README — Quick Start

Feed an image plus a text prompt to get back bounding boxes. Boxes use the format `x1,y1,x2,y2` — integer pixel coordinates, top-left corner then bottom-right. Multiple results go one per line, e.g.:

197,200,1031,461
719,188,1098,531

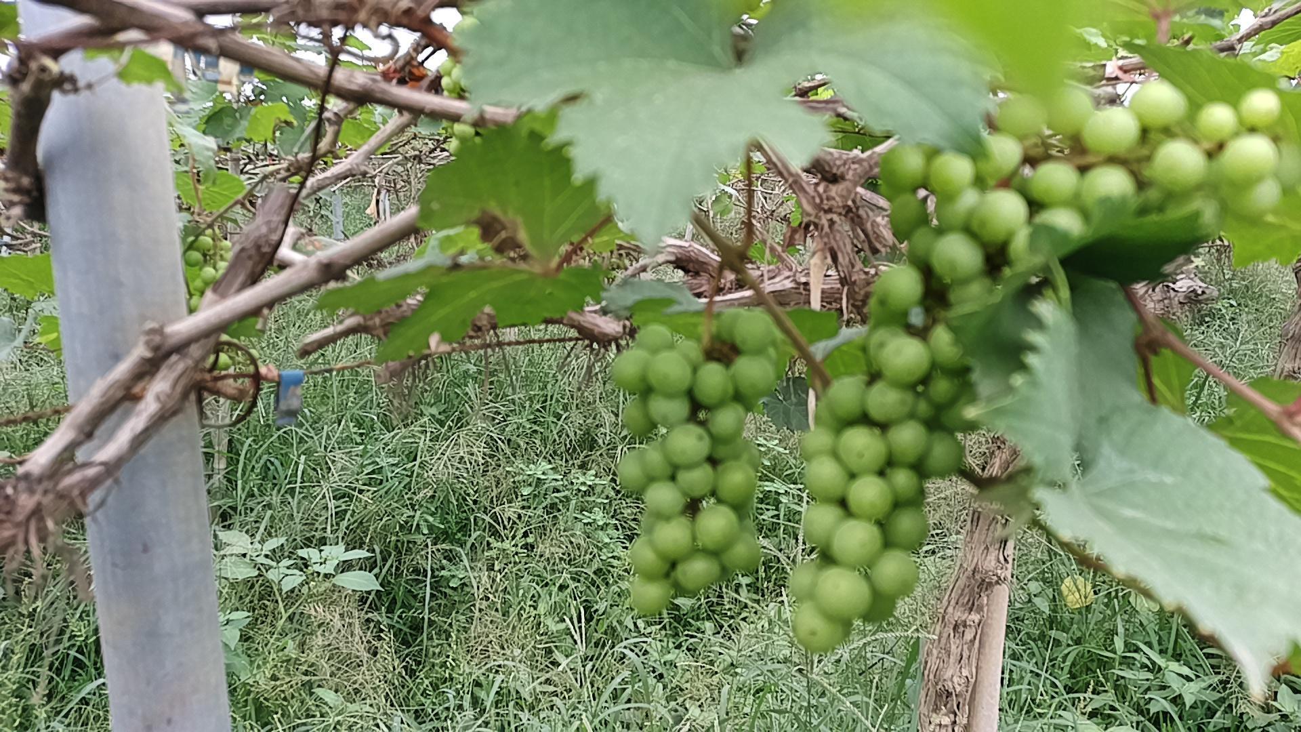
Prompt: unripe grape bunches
880,79,1300,314
181,228,260,369
789,266,968,652
613,308,782,613
440,9,494,155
